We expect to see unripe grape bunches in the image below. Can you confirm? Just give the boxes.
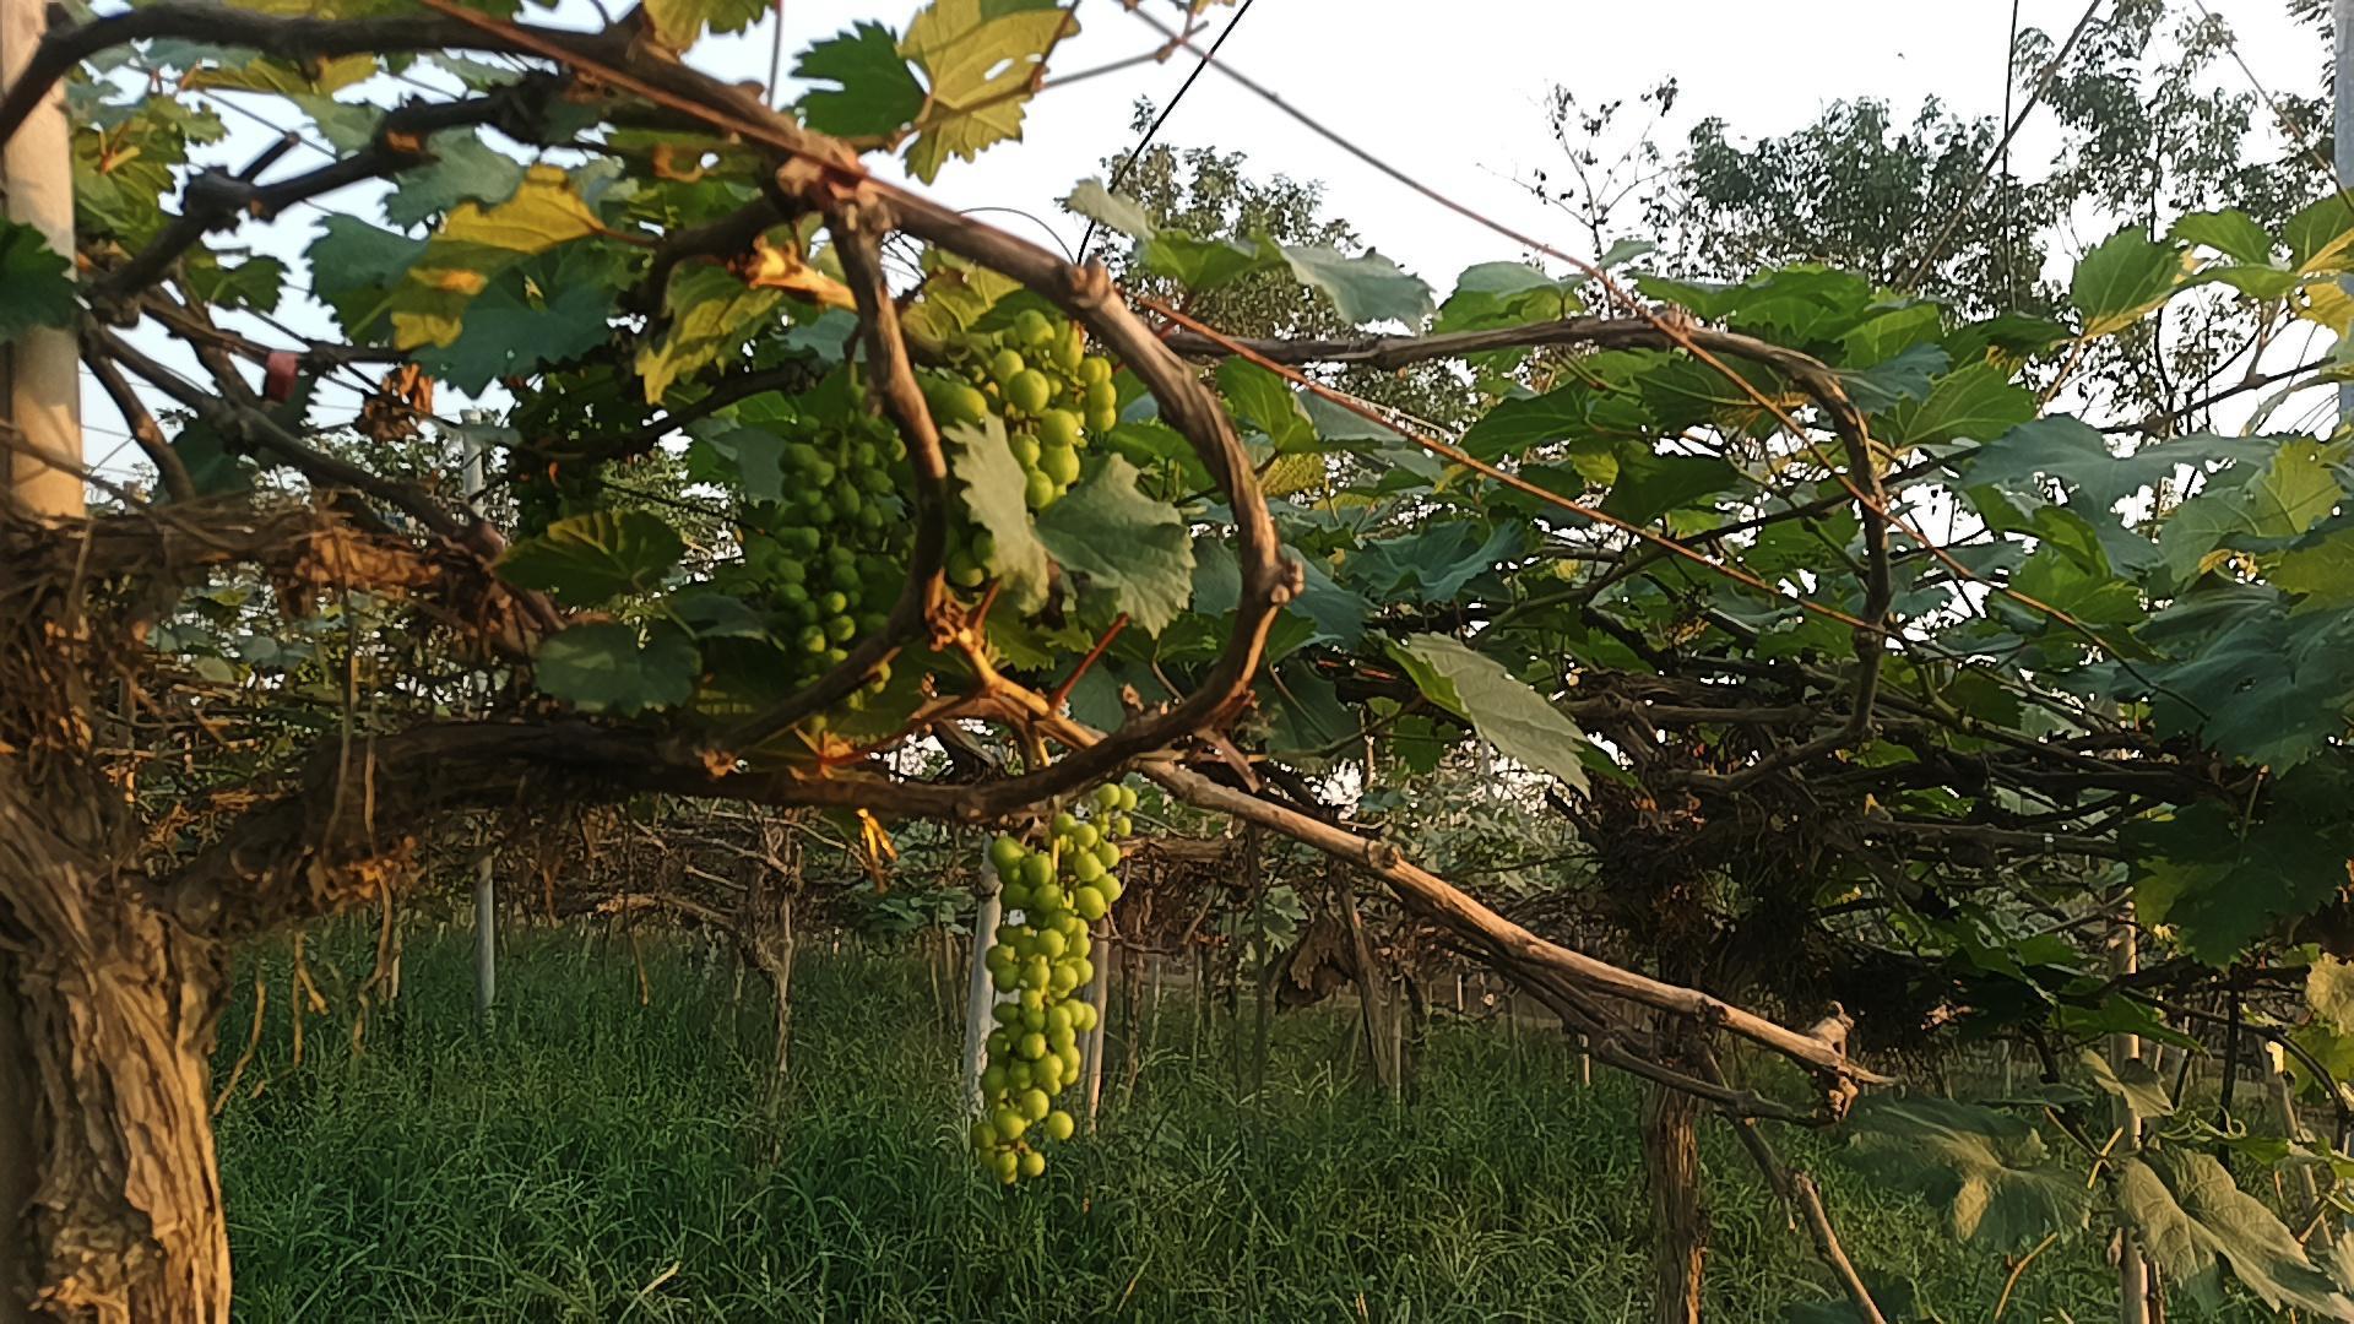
[972,783,1139,1184]
[765,384,900,658]
[922,310,1117,612]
